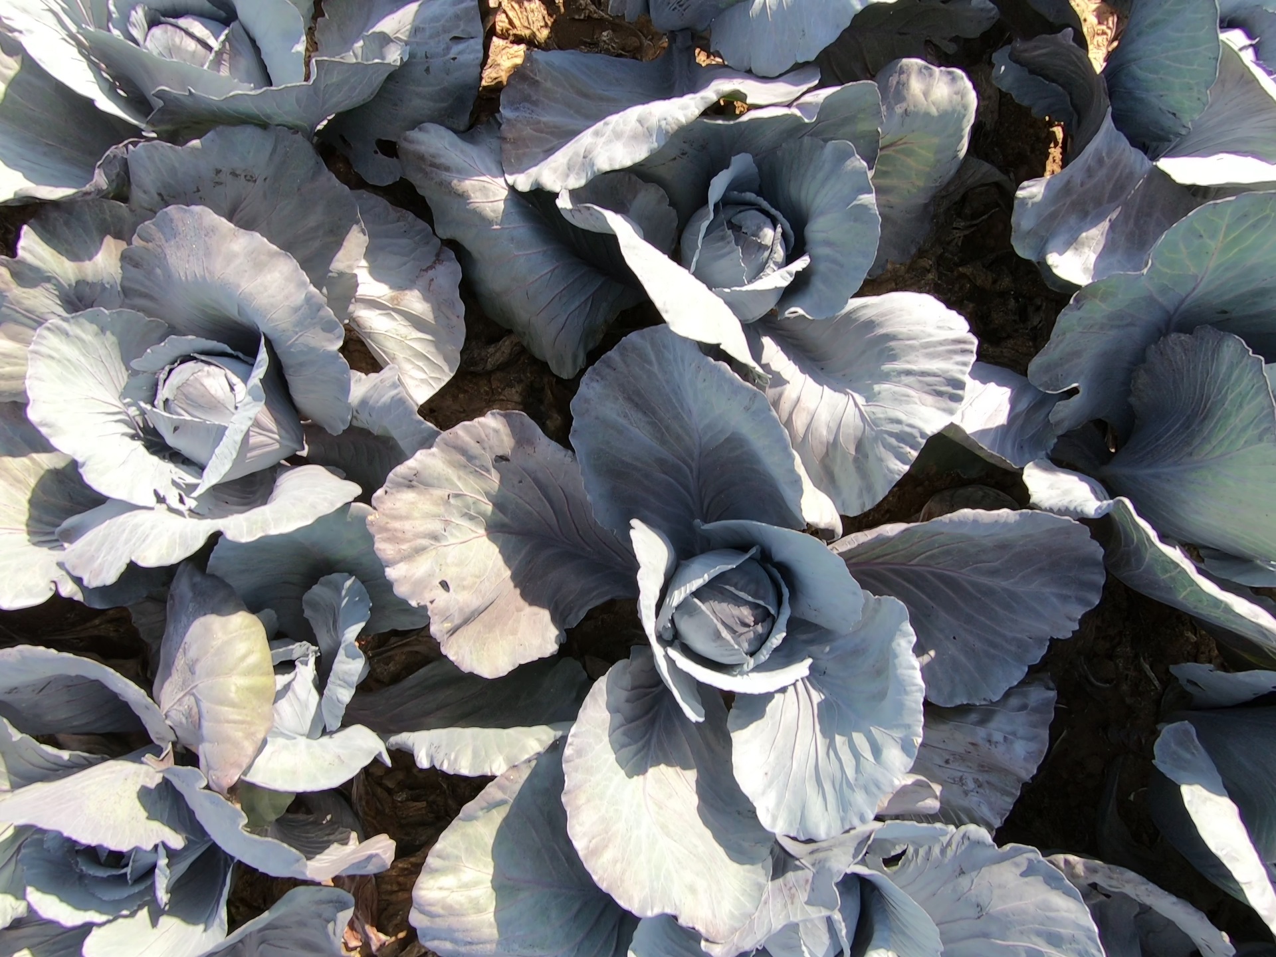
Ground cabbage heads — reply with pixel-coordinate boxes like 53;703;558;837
138;13;263;108
86;786;171;878
752;841;861;956
669;551;777;659
686;203;791;308
154;356;281;461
